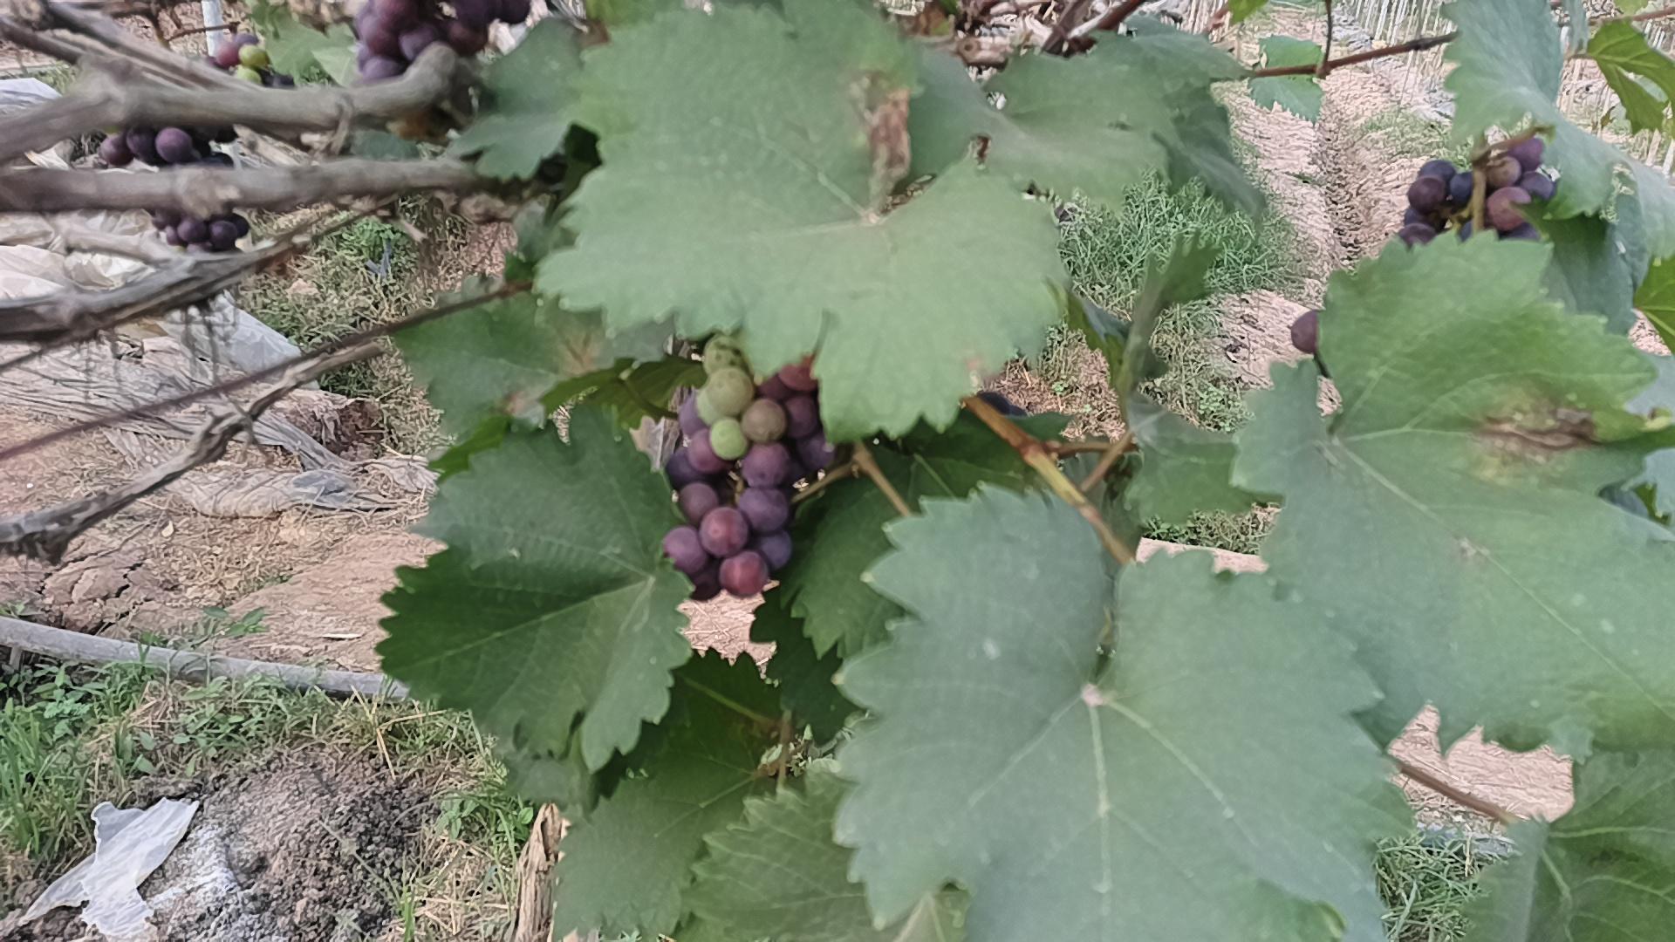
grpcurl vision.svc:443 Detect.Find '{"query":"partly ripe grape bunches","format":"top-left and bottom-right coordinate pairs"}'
top-left (347, 0), bottom-right (538, 142)
top-left (99, 30), bottom-right (297, 255)
top-left (662, 338), bottom-right (835, 597)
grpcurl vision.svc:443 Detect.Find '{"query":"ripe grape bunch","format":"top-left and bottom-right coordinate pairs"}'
top-left (1290, 128), bottom-right (1556, 353)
